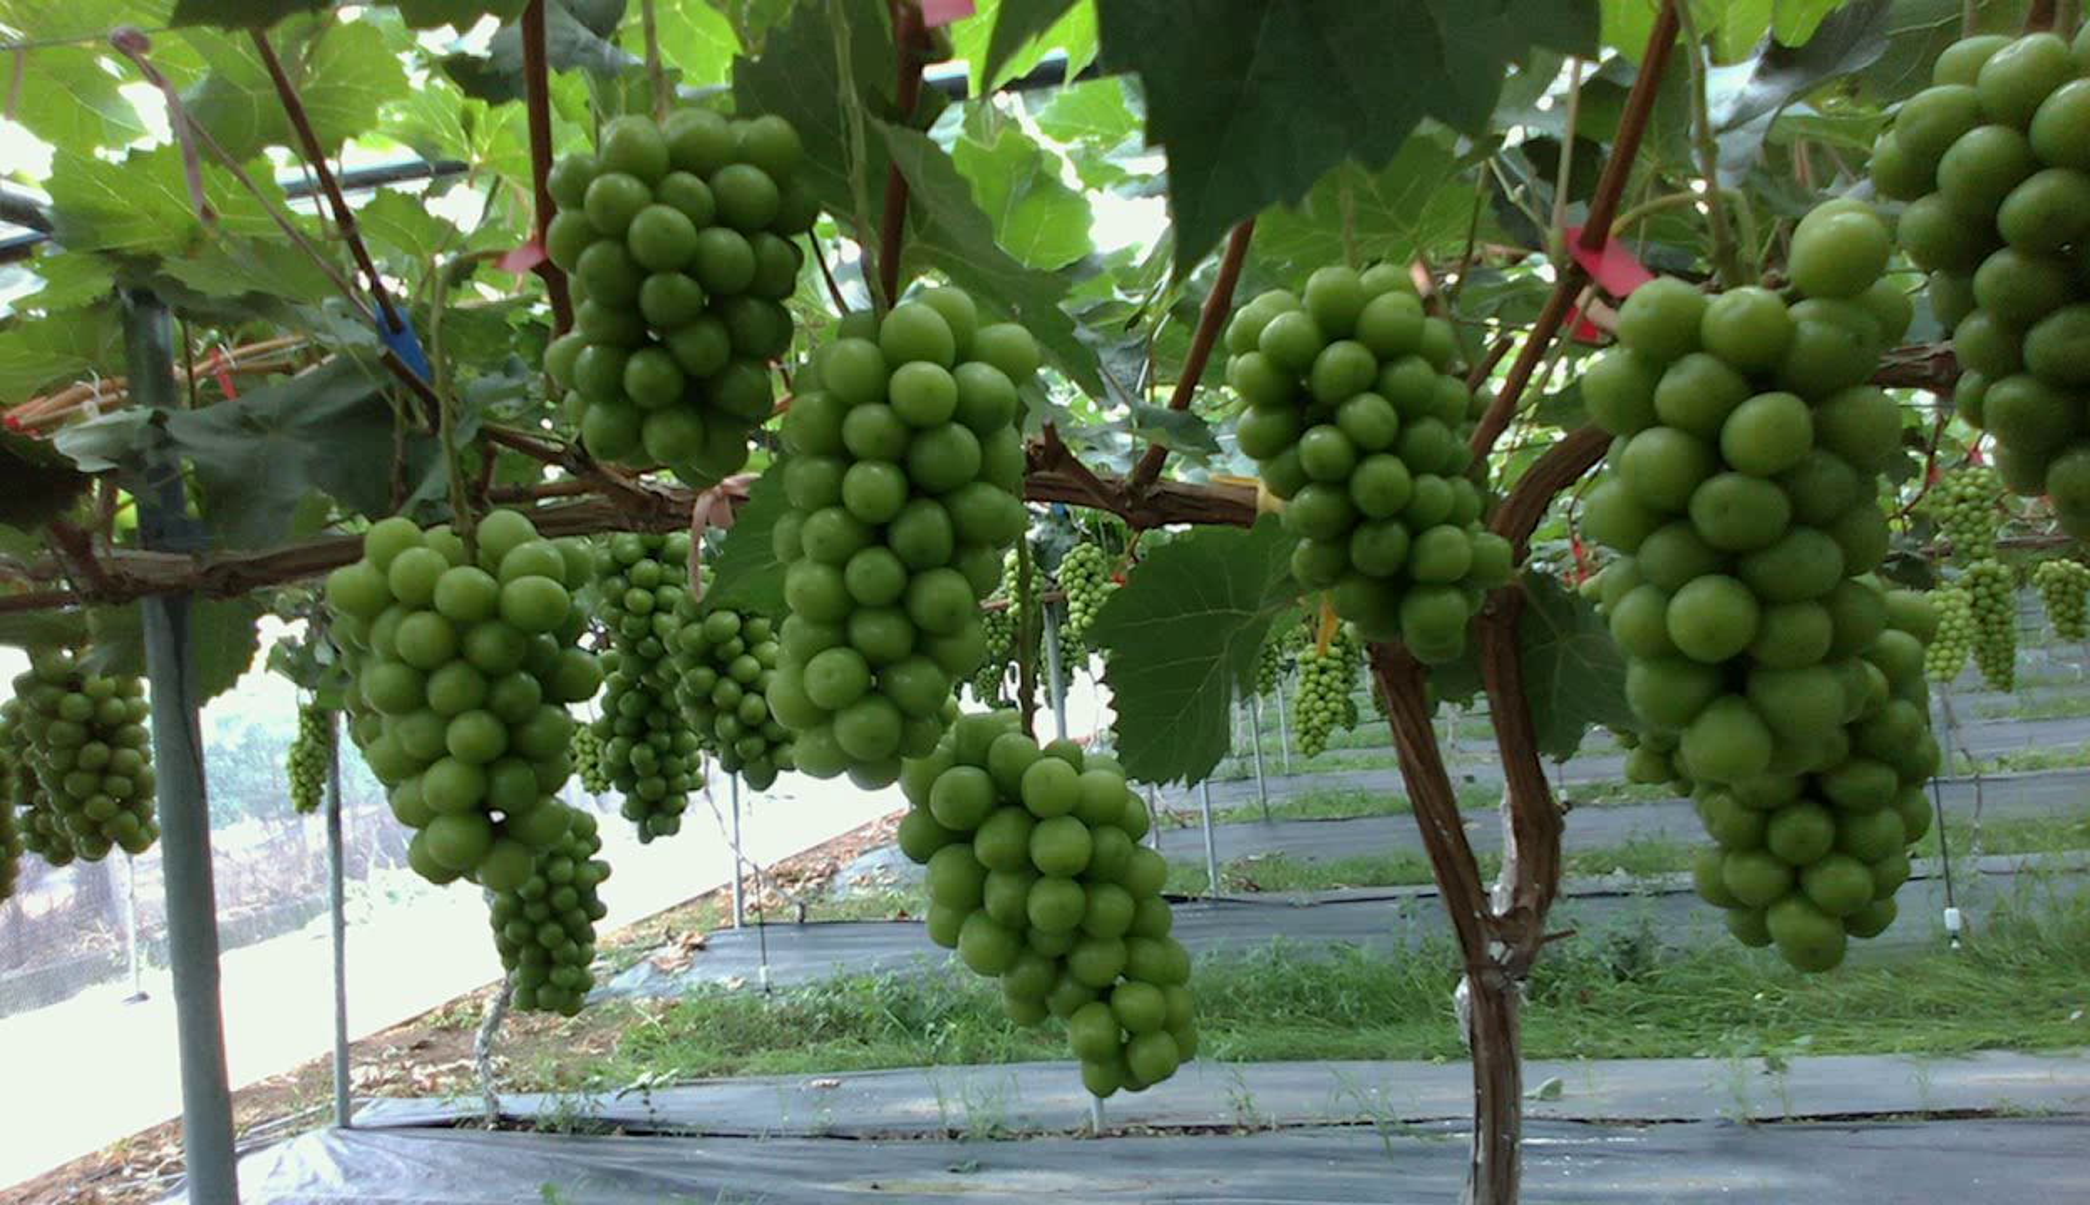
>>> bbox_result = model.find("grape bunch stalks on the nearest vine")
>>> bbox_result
[1017,536,1040,731]
[1675,0,1740,288]
[829,0,886,323]
[427,248,502,561]
[1341,162,1356,266]
[643,0,667,119]
[2057,2,2077,32]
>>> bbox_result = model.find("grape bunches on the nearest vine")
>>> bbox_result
[765,290,1040,793]
[898,706,1199,1098]
[1583,196,1911,785]
[1224,264,1512,663]
[323,509,605,892]
[1862,22,2088,539]
[541,109,817,490]
[1695,587,1943,974]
